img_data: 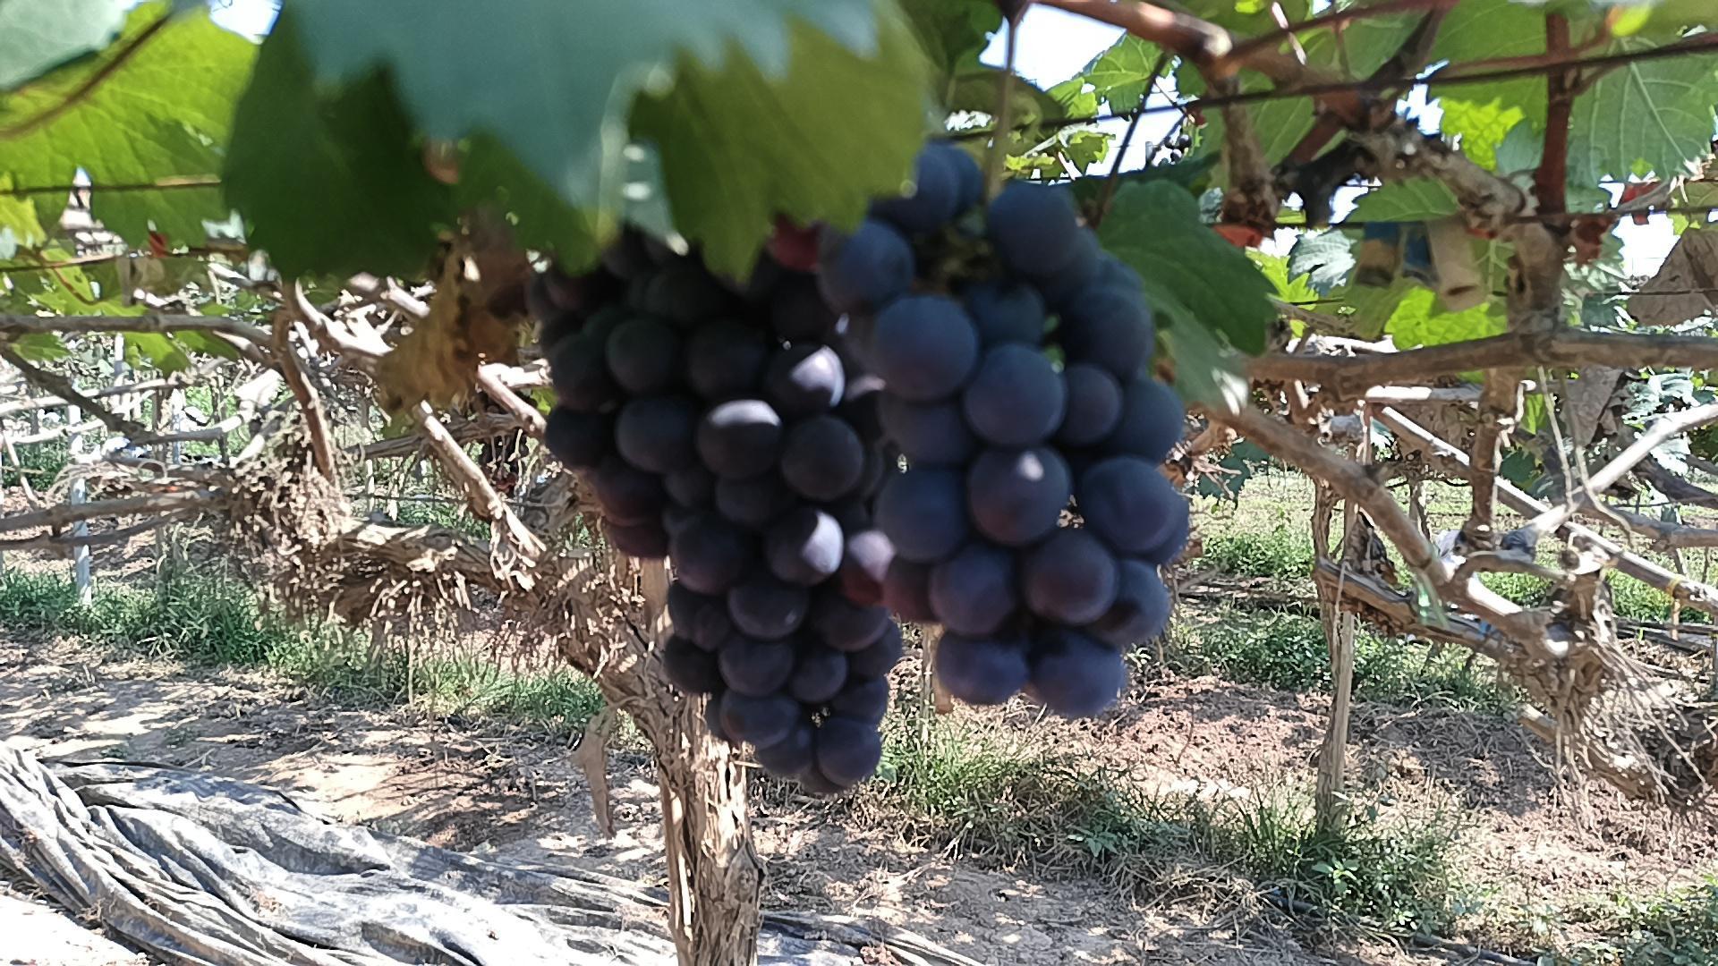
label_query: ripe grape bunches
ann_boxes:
[821,142,1187,716]
[525,229,904,793]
